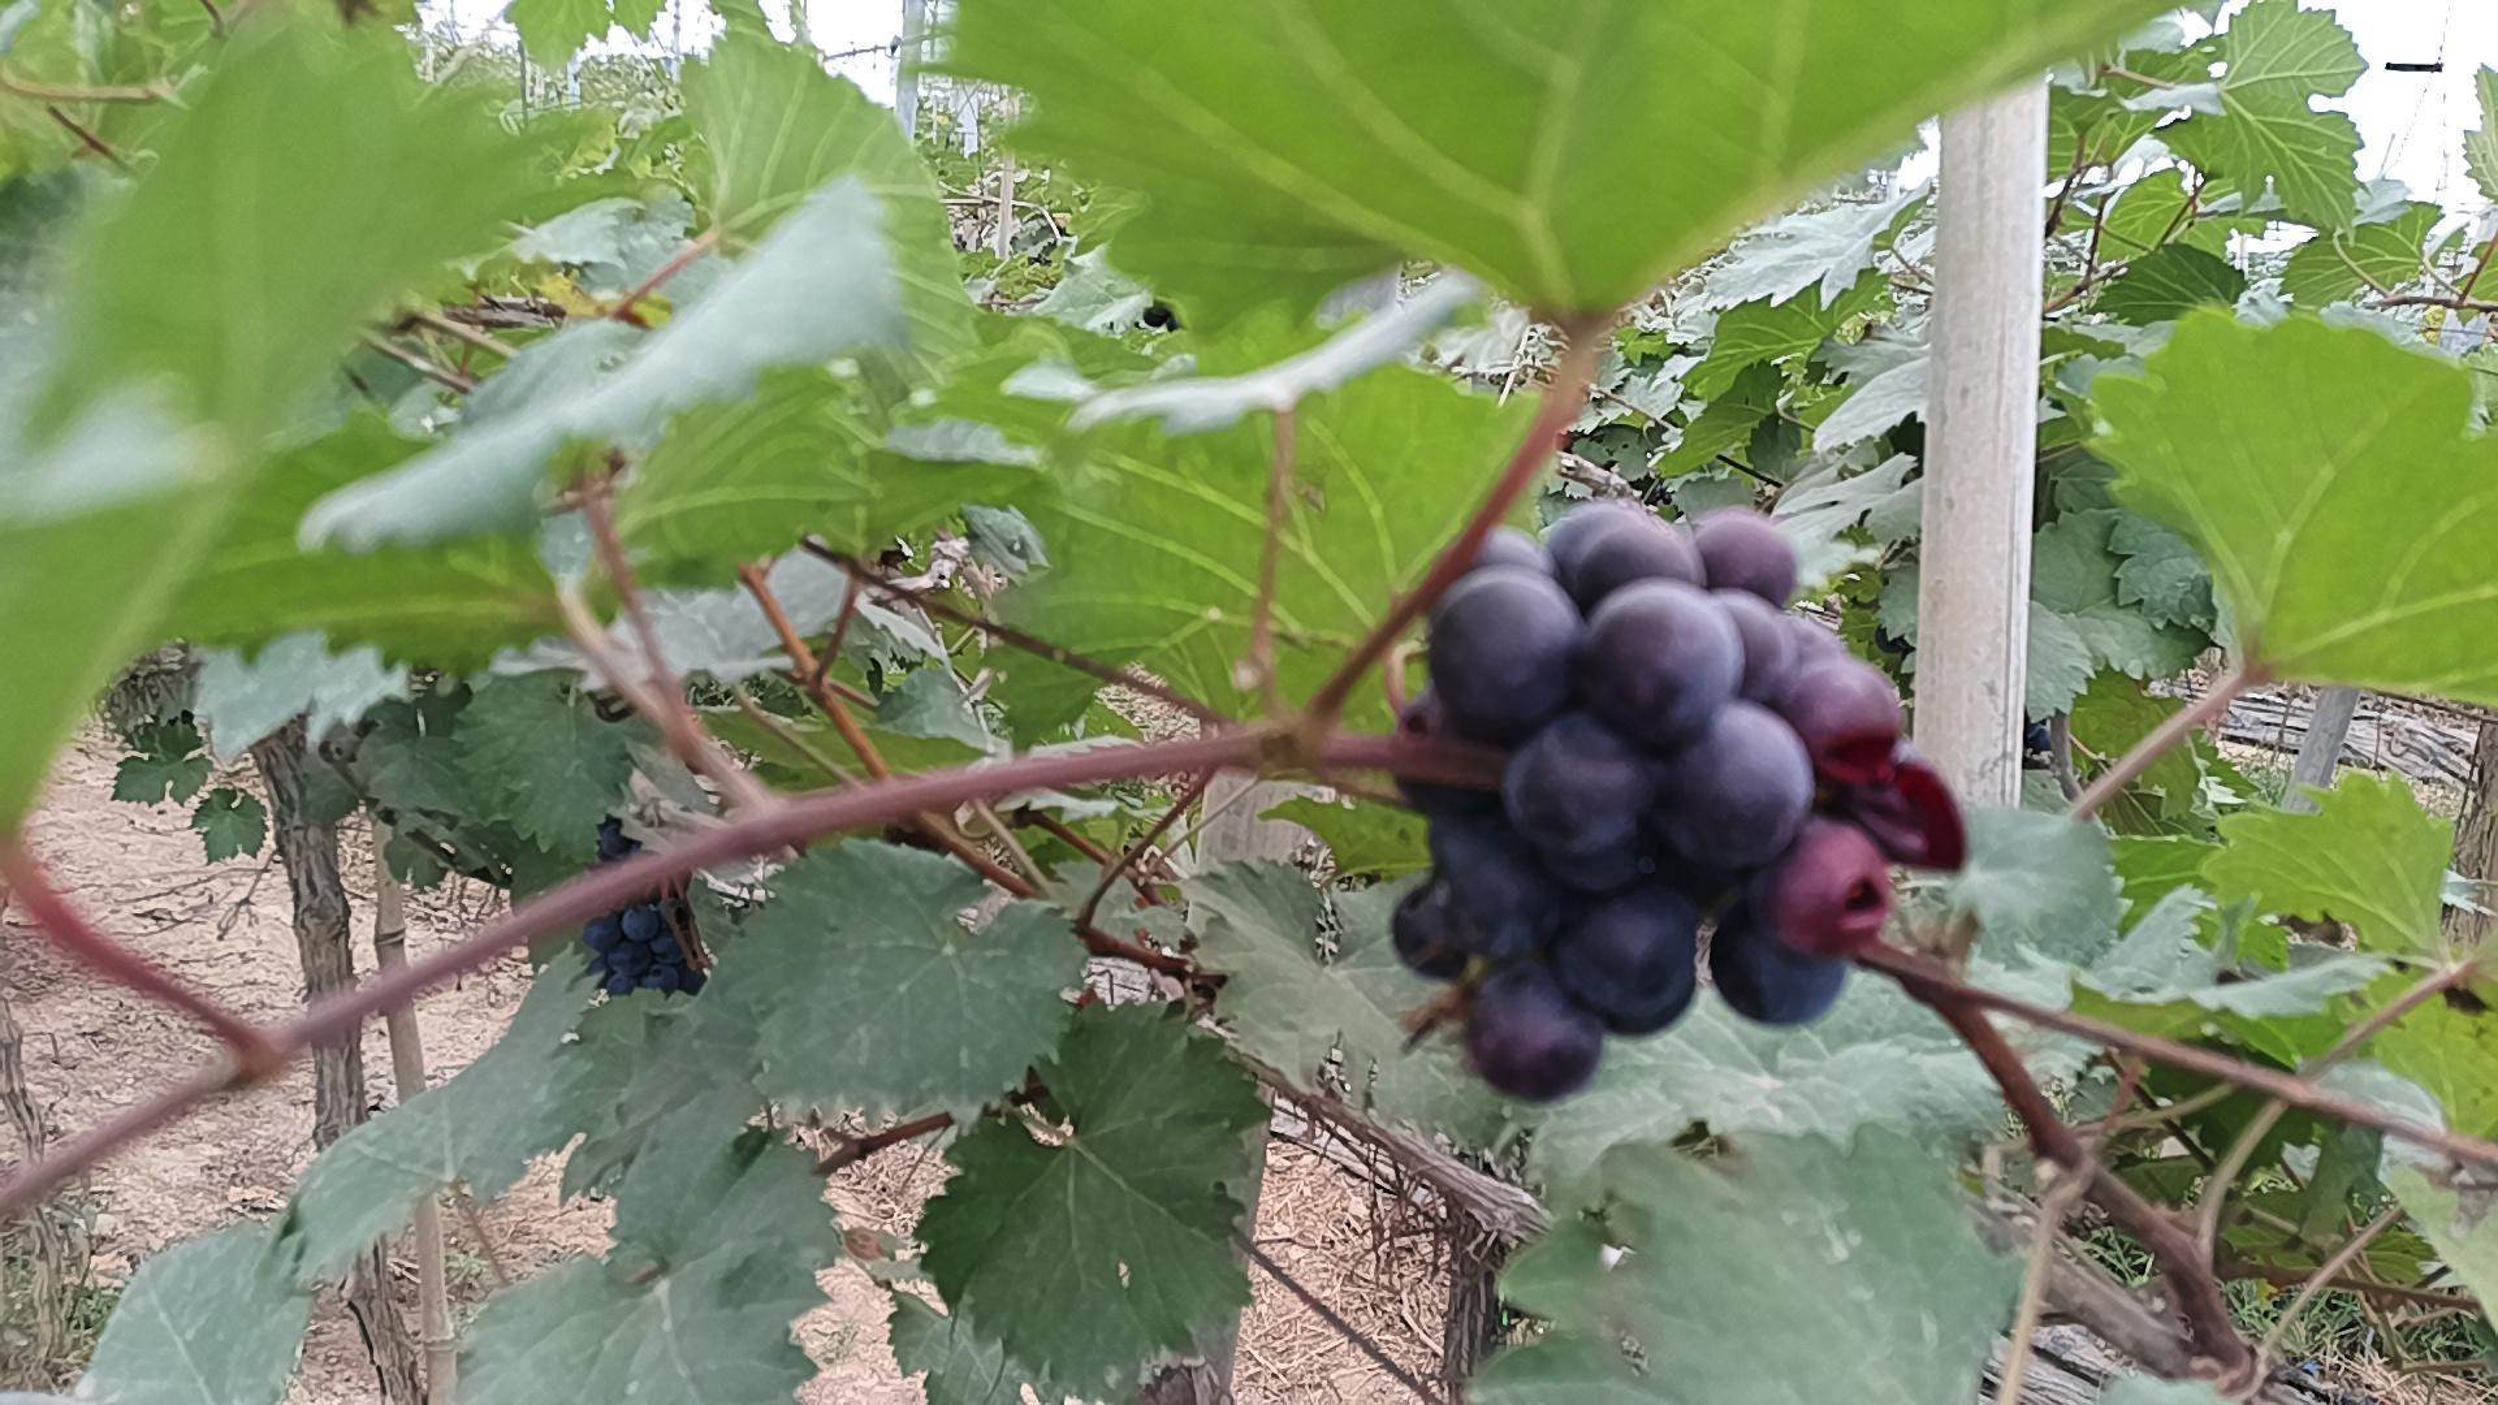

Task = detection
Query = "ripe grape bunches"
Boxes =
[1391,505,1967,1098]
[580,813,705,995]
